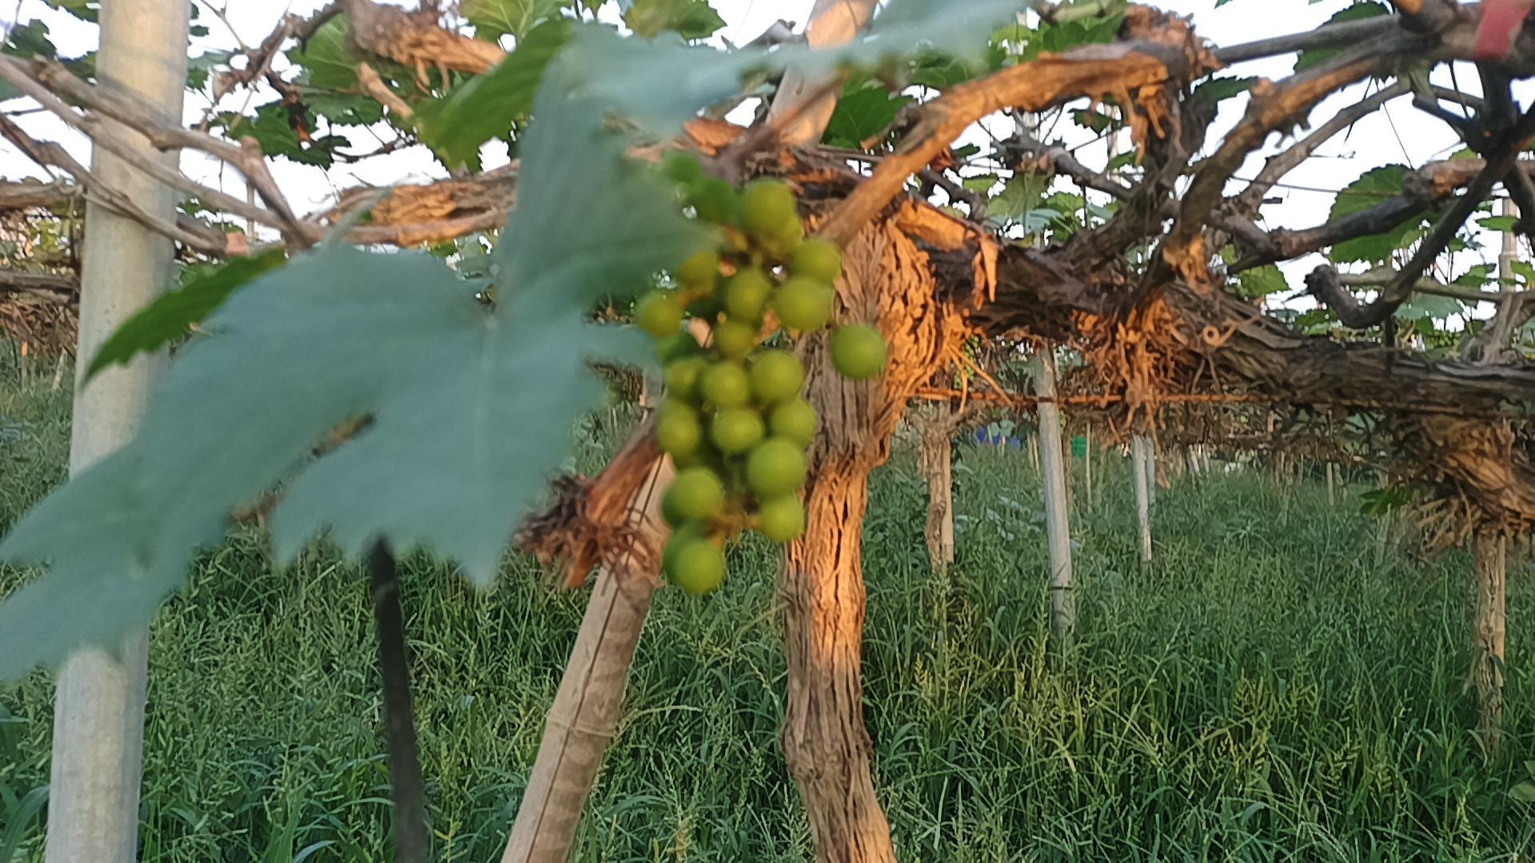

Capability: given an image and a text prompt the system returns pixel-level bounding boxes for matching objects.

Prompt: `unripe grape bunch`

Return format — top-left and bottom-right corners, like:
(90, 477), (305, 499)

(636, 154), (887, 593)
